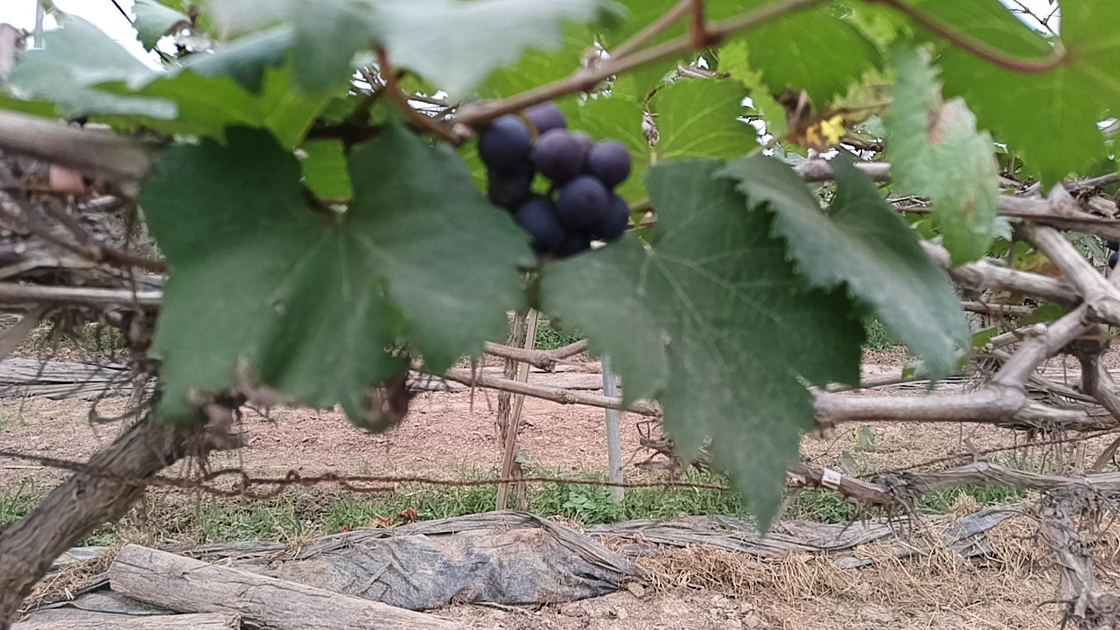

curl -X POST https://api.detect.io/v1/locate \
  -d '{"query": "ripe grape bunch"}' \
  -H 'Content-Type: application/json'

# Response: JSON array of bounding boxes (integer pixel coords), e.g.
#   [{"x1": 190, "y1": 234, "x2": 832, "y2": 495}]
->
[{"x1": 479, "y1": 102, "x2": 630, "y2": 257}]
